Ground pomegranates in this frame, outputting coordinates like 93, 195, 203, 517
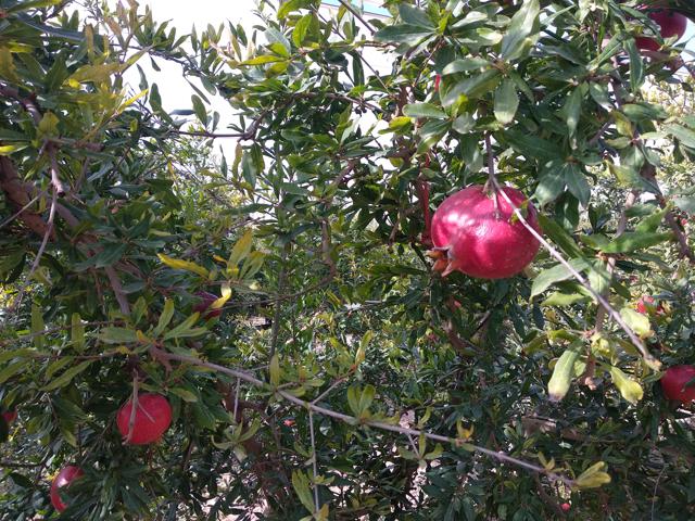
660, 364, 695, 402
422, 185, 543, 279
635, 10, 686, 51
116, 393, 172, 444
50, 466, 85, 512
